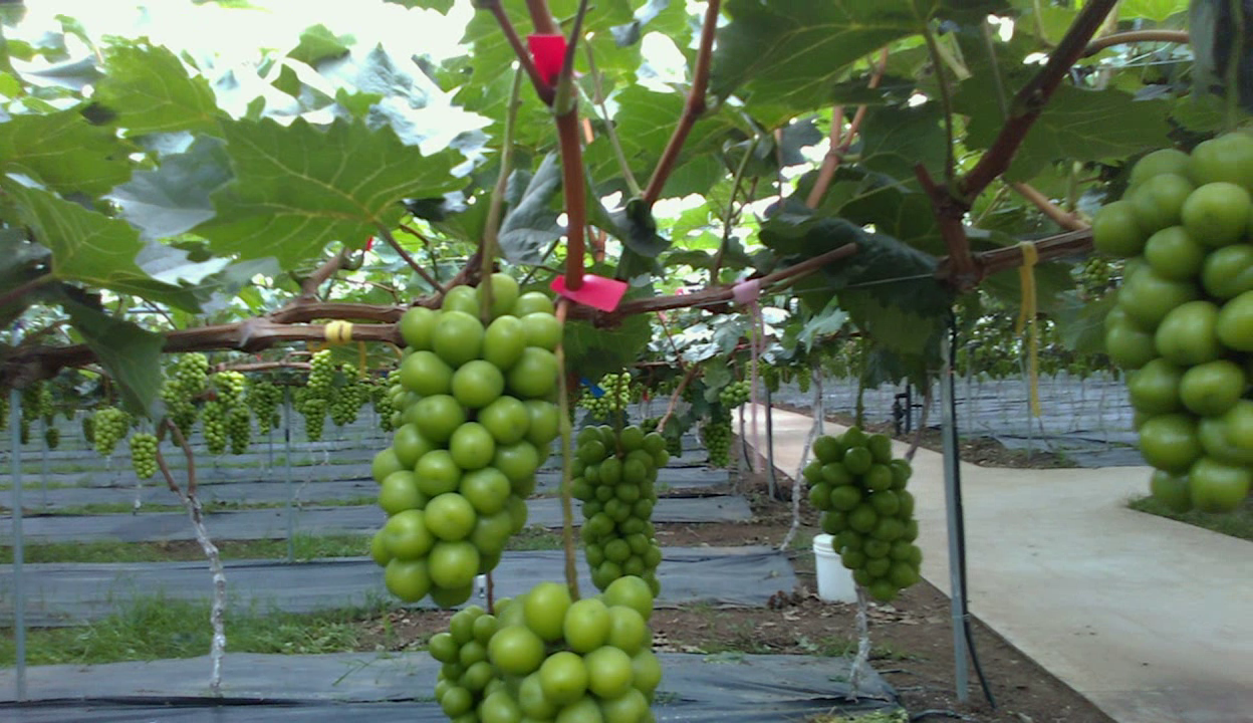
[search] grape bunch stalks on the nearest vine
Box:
[481,61,524,323]
[555,300,579,604]
[1227,0,1245,136]
[487,574,495,617]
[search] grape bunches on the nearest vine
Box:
[371,272,564,609]
[428,597,513,722]
[1093,126,1252,516]
[483,575,661,722]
